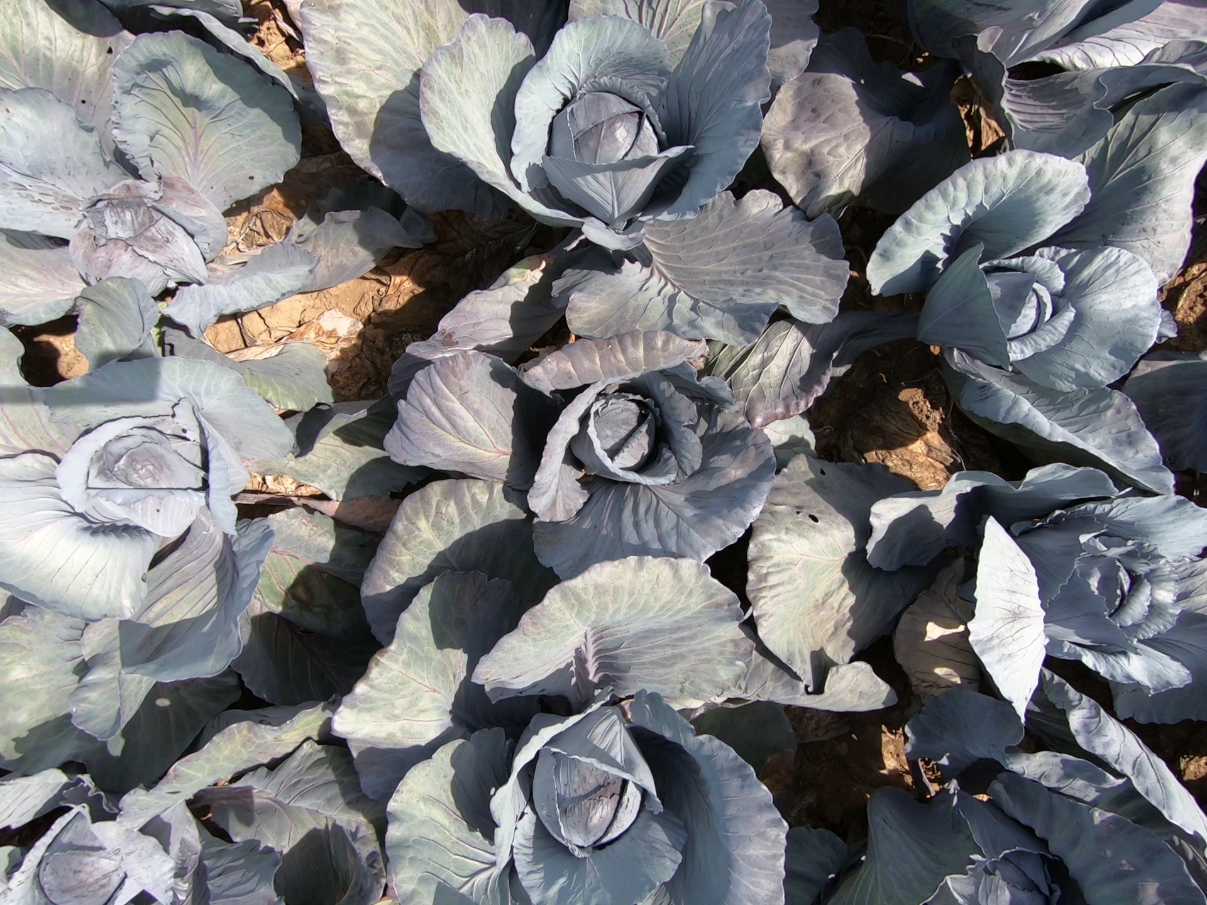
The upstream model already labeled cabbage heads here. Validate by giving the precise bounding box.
[1027,537,1135,627]
[69,179,193,303]
[909,815,1050,901]
[36,790,199,903]
[534,717,649,848]
[551,87,664,219]
[966,275,1055,344]
[84,431,202,529]
[577,393,656,474]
